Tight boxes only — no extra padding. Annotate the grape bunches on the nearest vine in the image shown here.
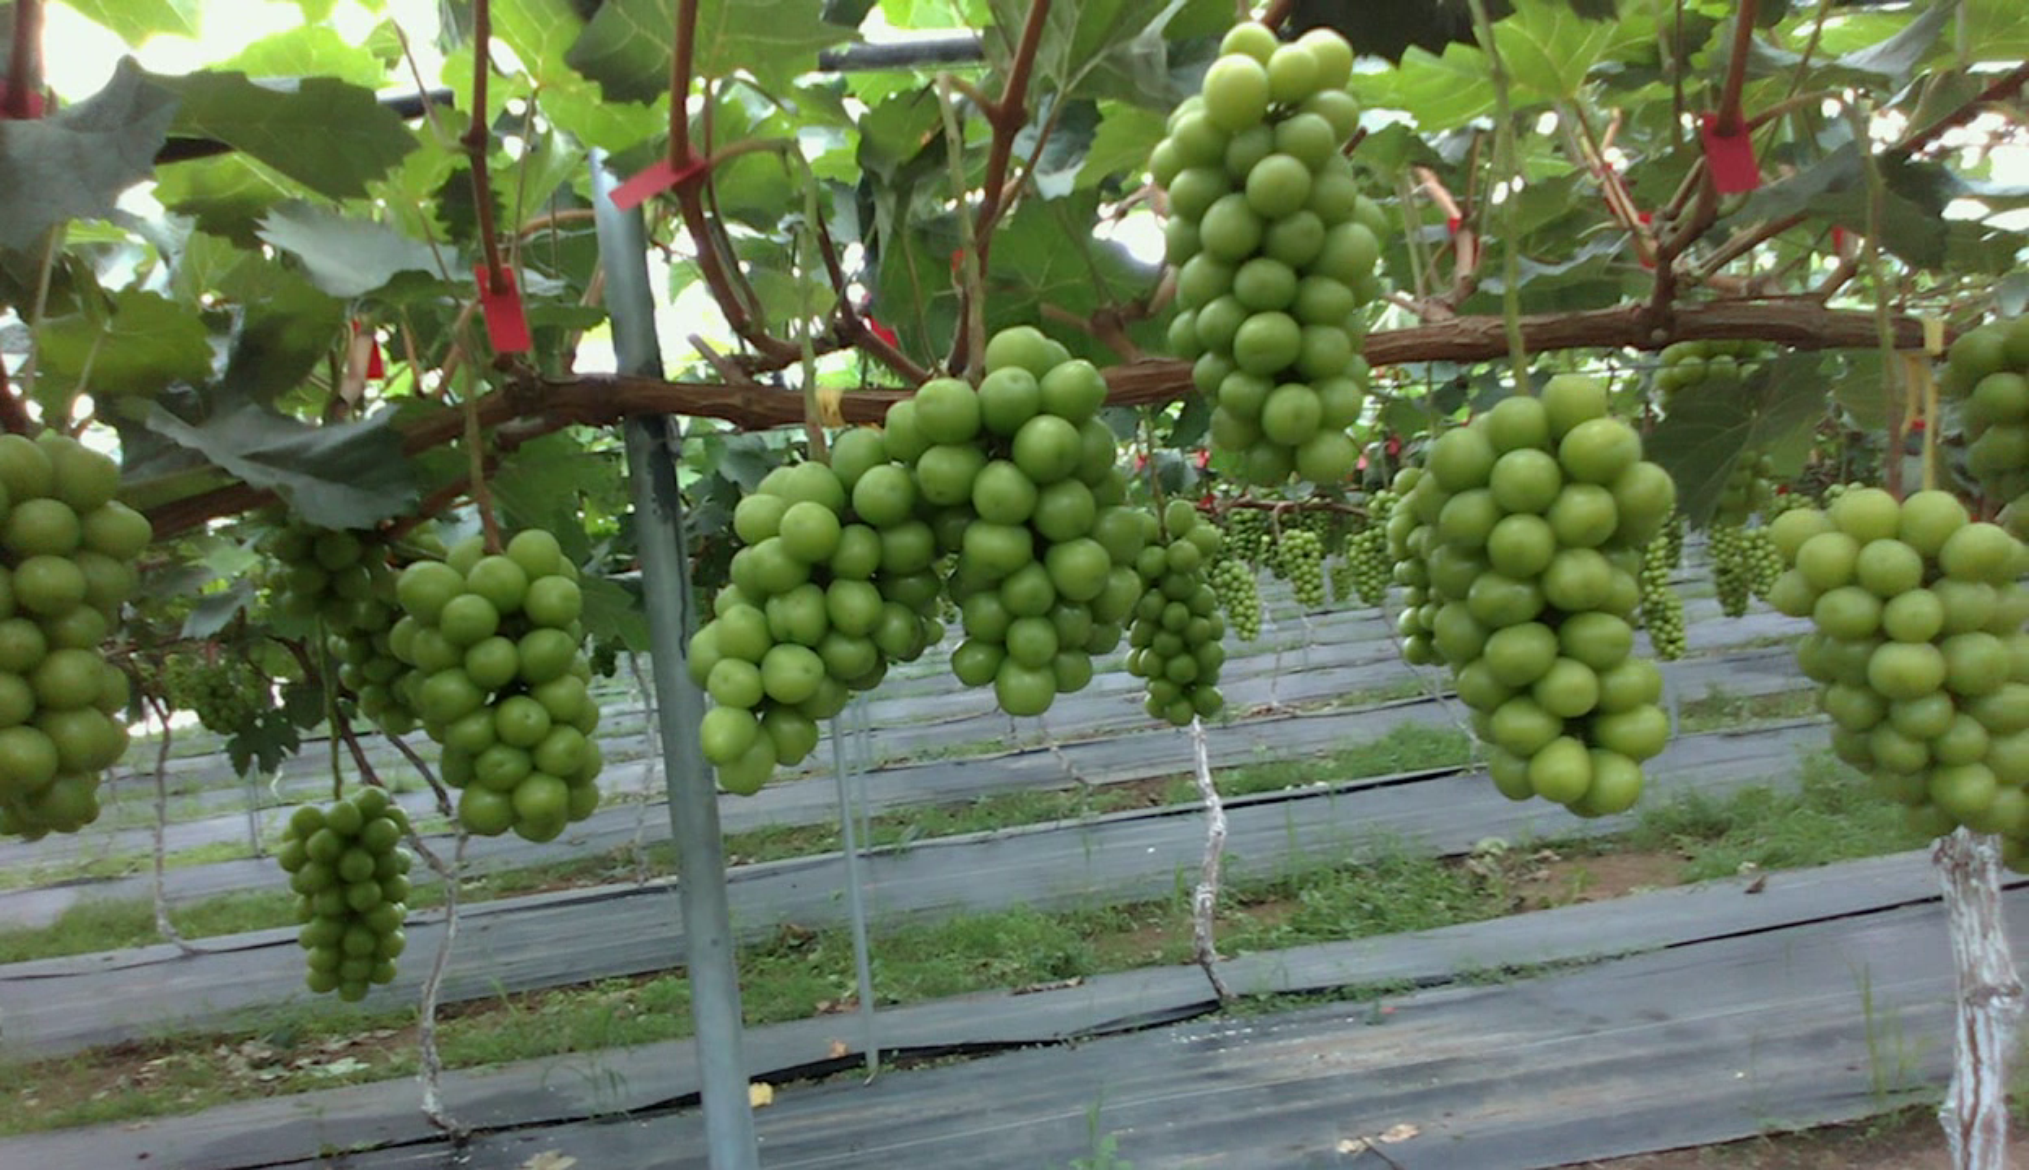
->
[686,429,945,795]
[1769,487,2027,873]
[1411,370,1676,819]
[0,434,153,837]
[389,530,603,840]
[1148,21,1388,489]
[884,325,1145,718]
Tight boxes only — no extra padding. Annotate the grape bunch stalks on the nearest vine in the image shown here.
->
[715,136,826,461]
[1470,0,1530,392]
[935,71,984,387]
[1754,93,1901,500]
[449,302,501,551]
